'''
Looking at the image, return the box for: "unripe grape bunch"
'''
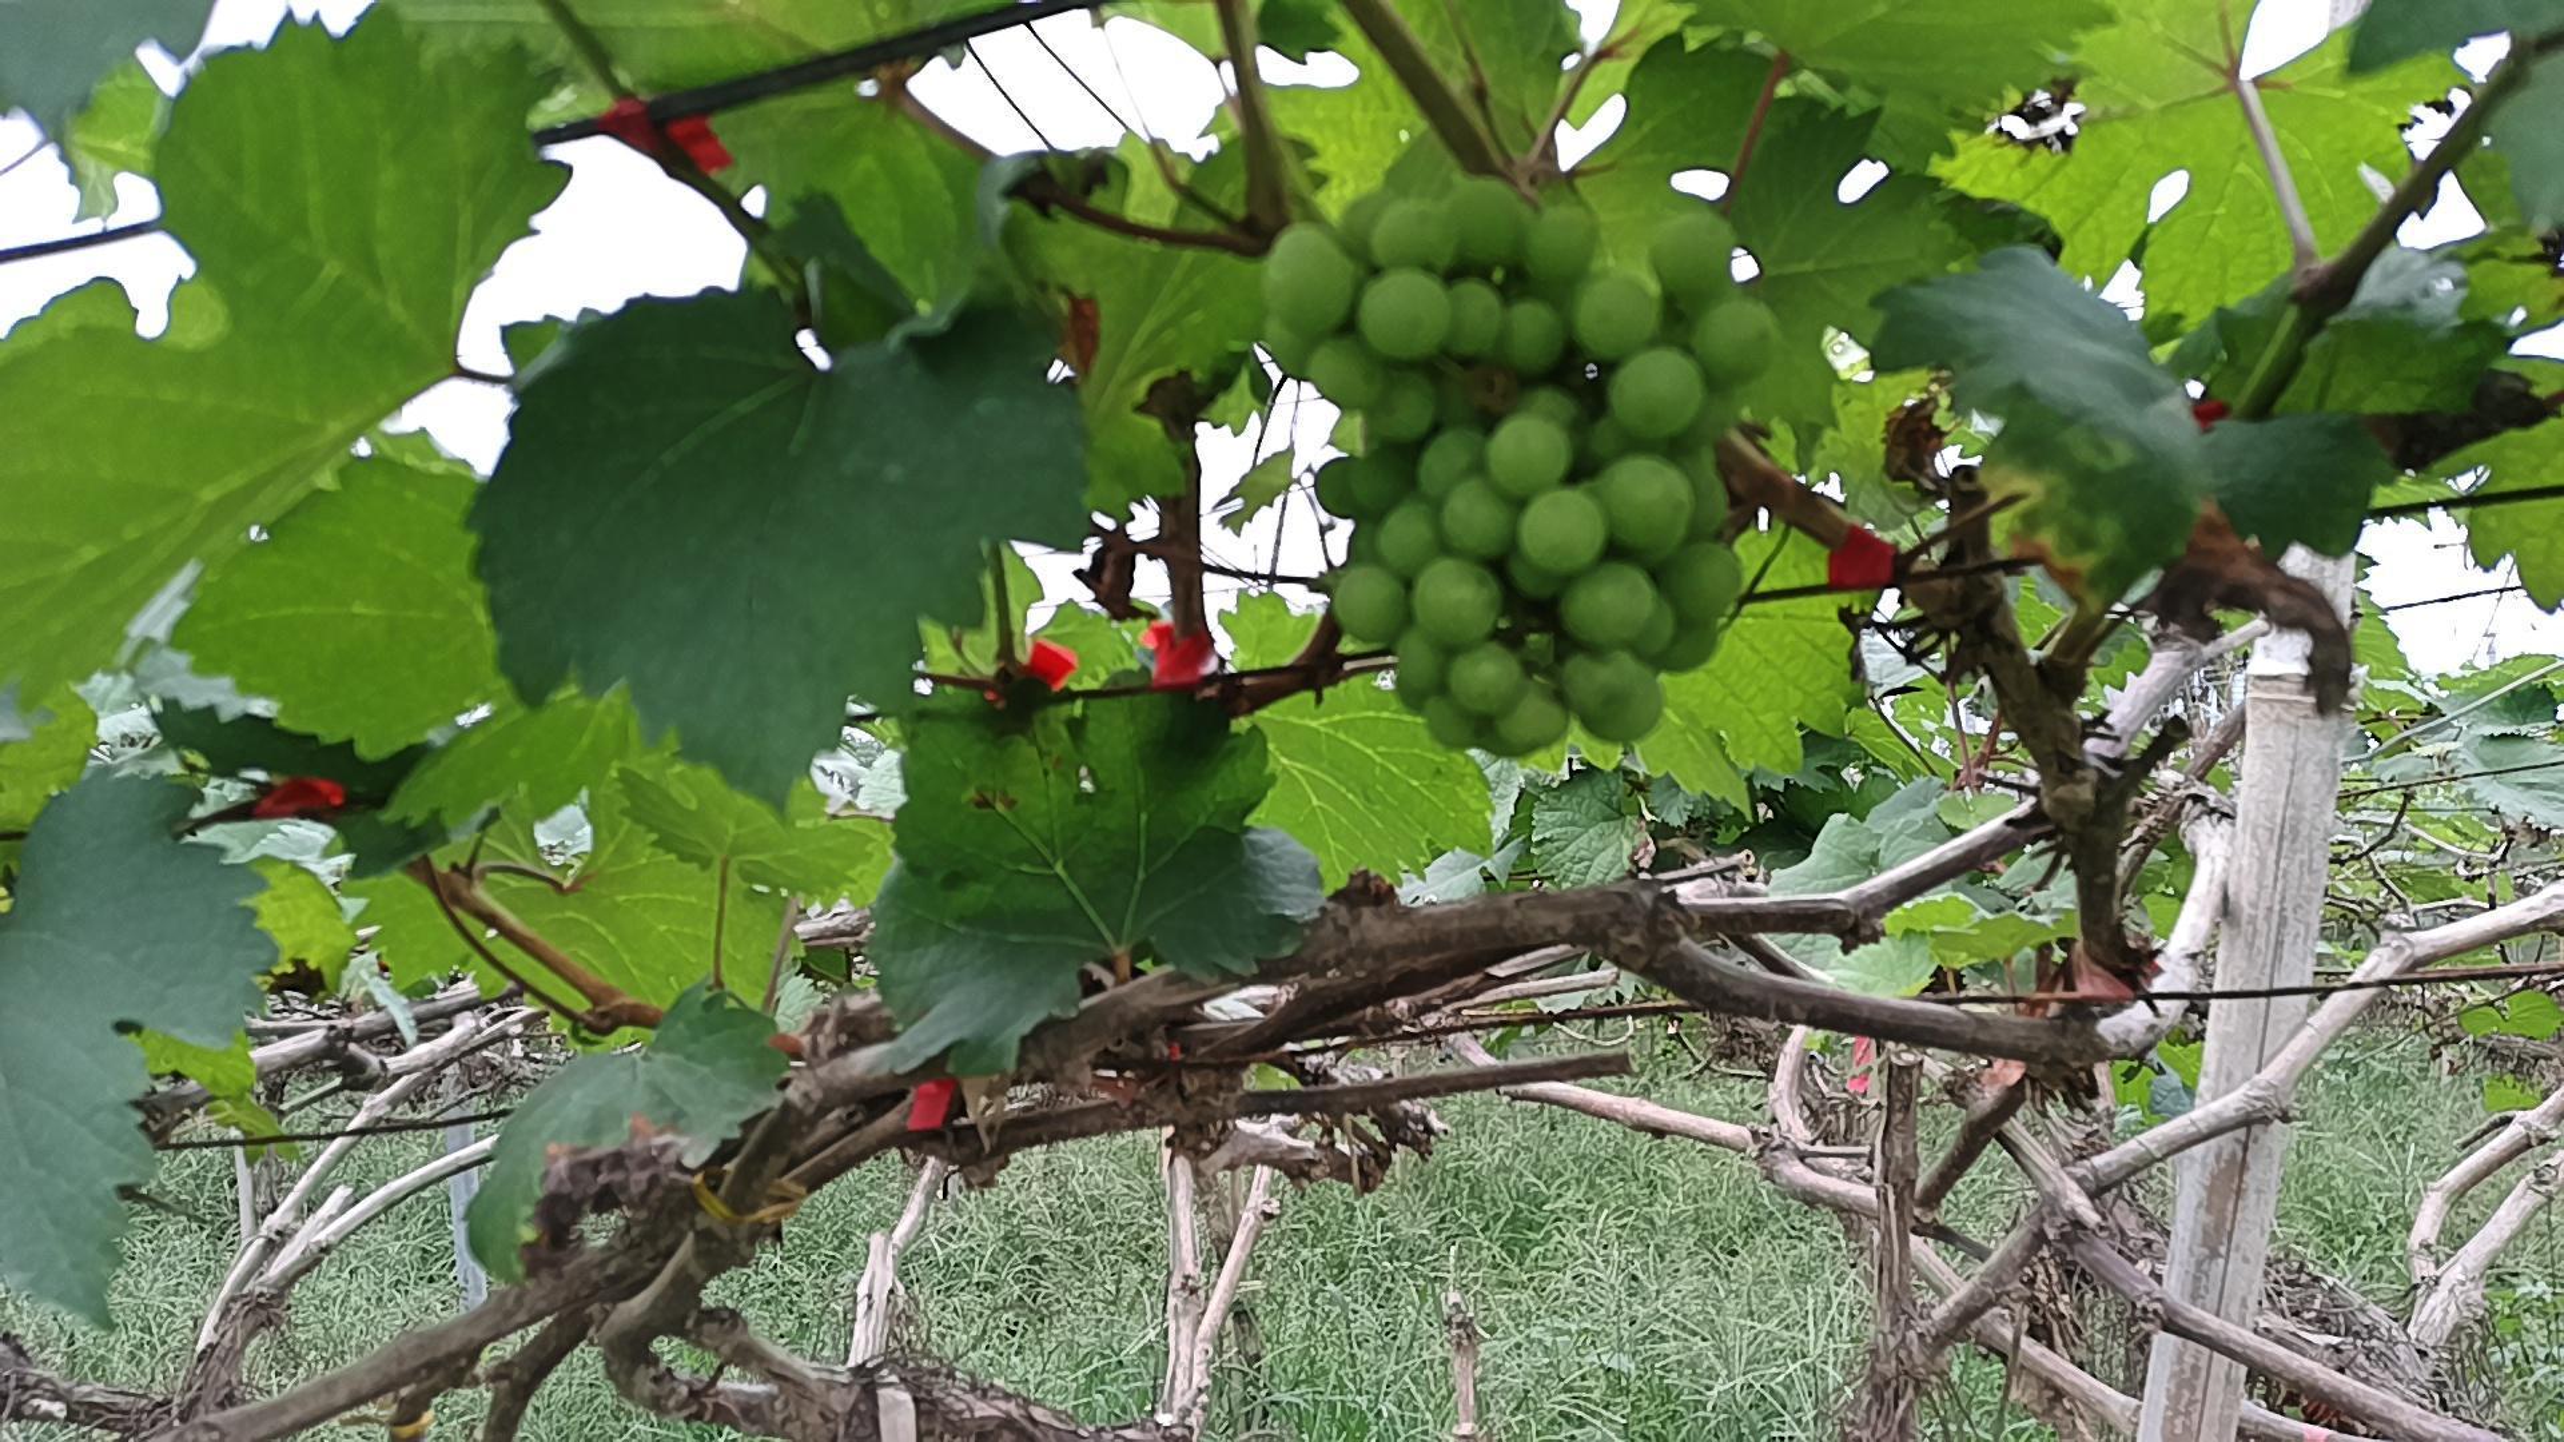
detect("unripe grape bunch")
[1271,182,1780,758]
